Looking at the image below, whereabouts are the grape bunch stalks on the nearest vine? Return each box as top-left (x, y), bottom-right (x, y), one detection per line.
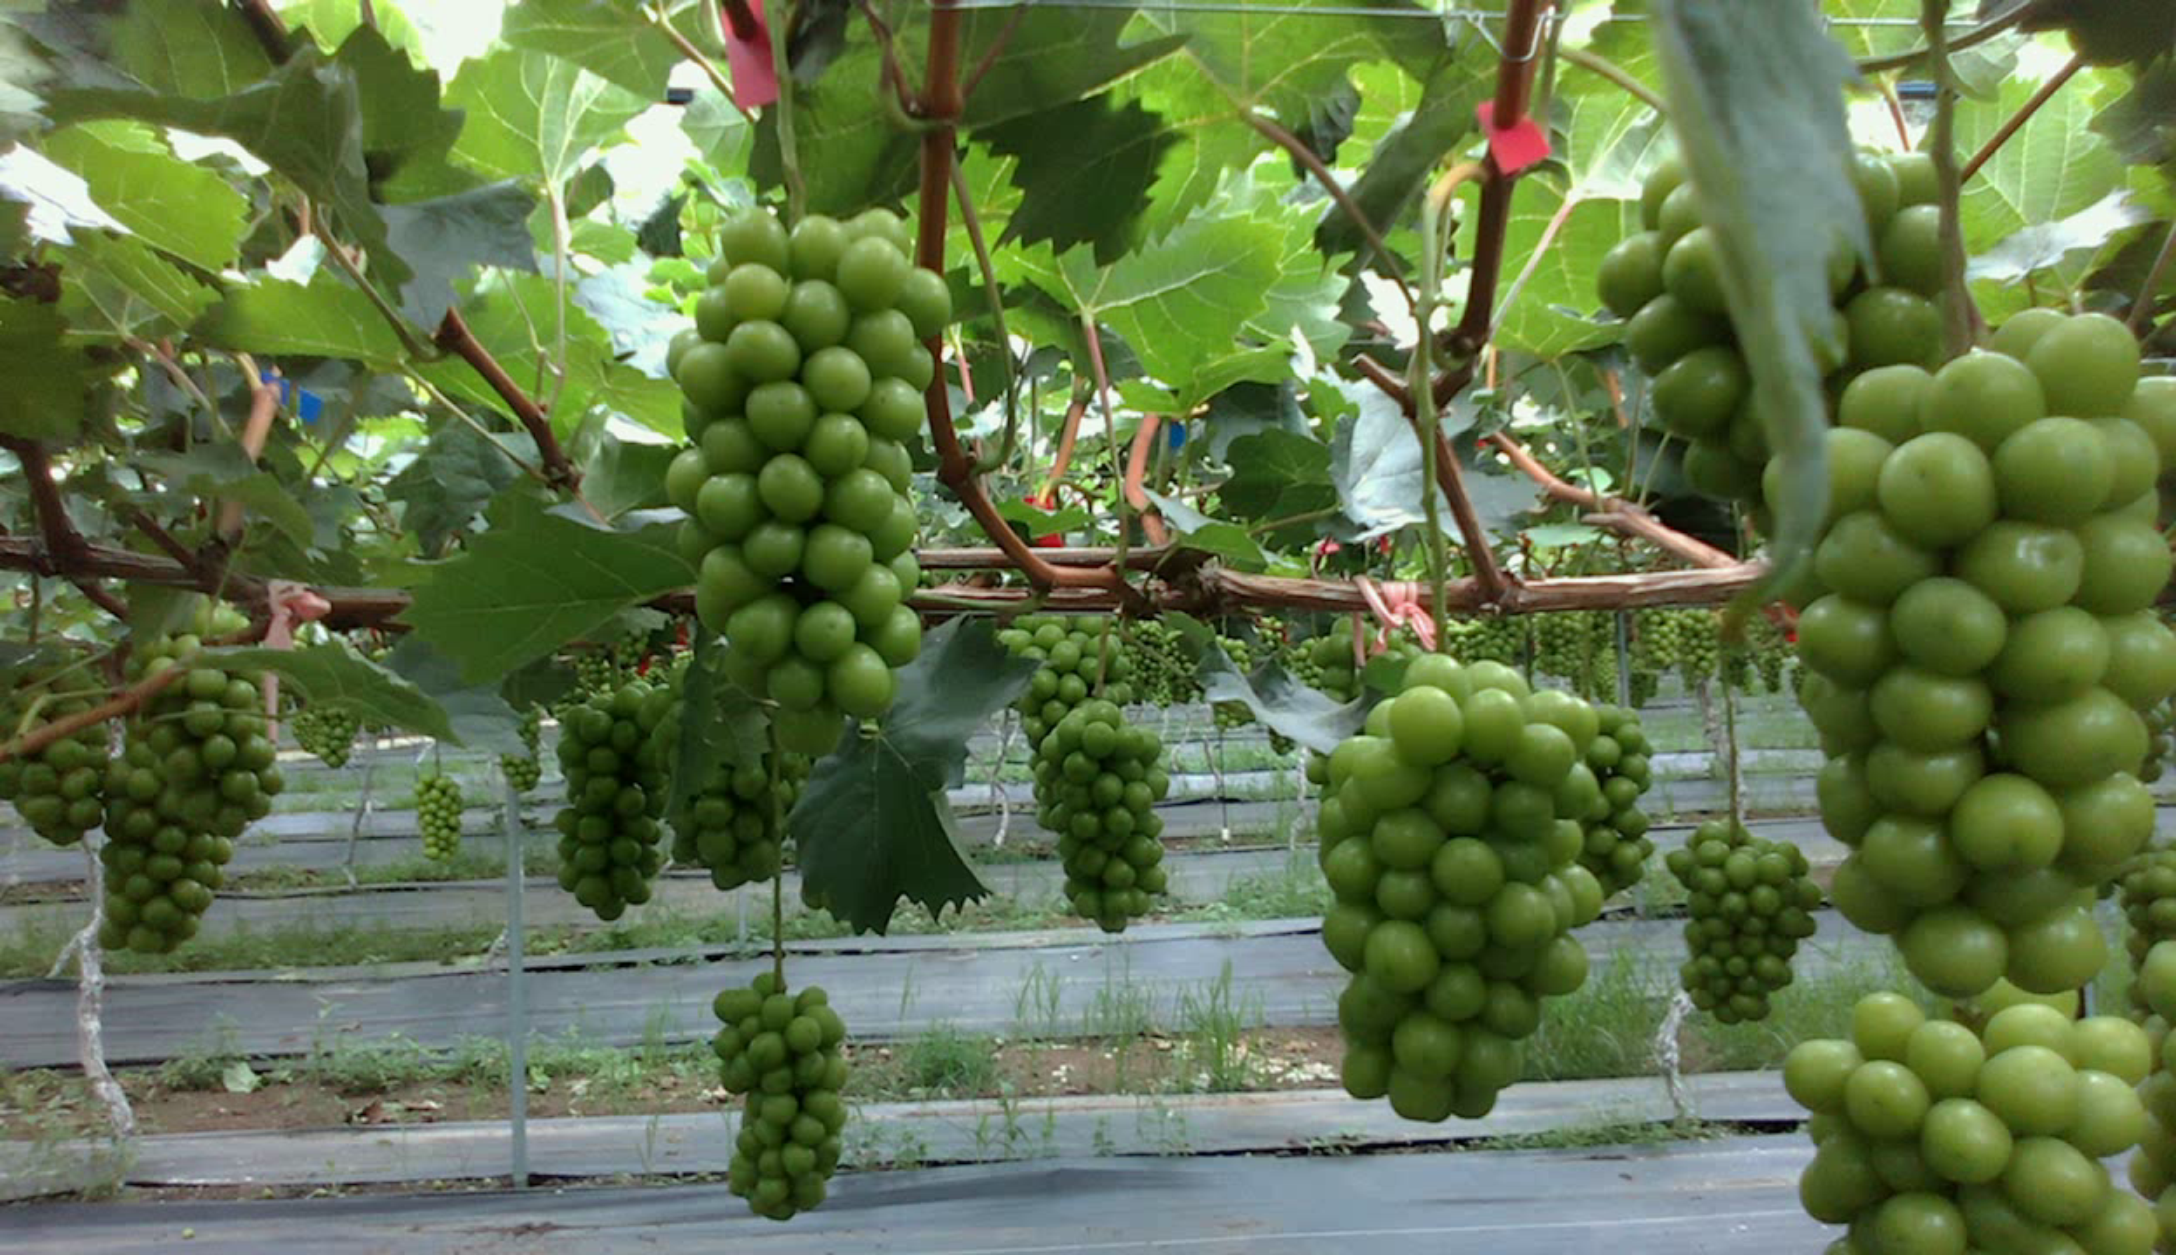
top-left (1416, 160), bottom-right (1480, 654)
top-left (765, 3), bottom-right (806, 232)
top-left (1920, 0), bottom-right (1989, 363)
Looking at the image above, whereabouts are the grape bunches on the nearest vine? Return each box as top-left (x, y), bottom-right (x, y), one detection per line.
top-left (1316, 652), bottom-right (1604, 1121)
top-left (1782, 995), bottom-right (2160, 1252)
top-left (2127, 941), bottom-right (2174, 1253)
top-left (1784, 307), bottom-right (2174, 997)
top-left (666, 207), bottom-right (952, 755)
